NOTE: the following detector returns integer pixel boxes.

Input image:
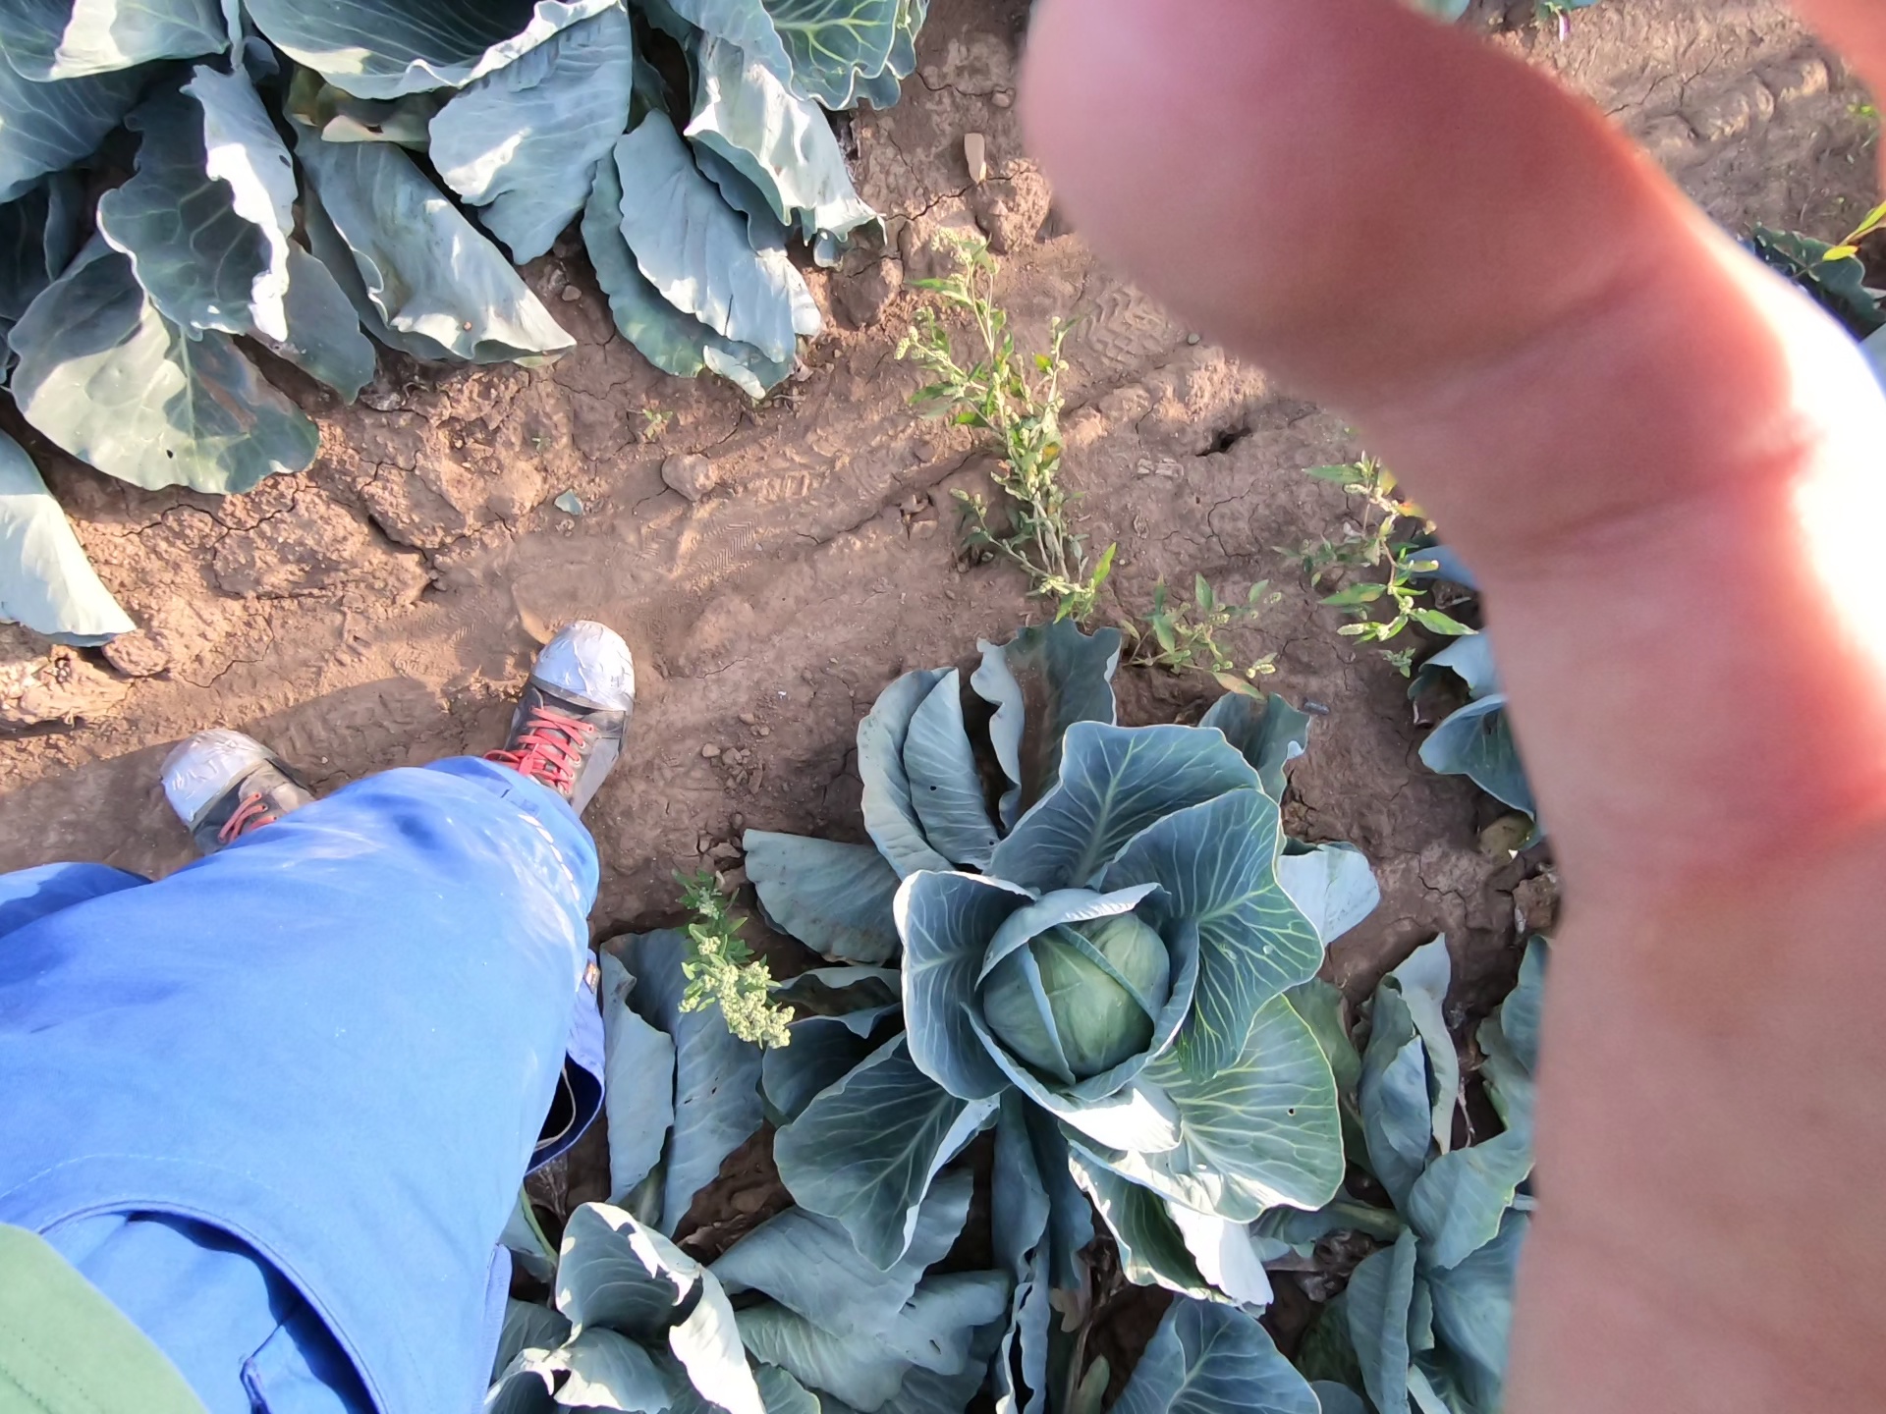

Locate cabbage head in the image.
[986,892,1177,1082]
